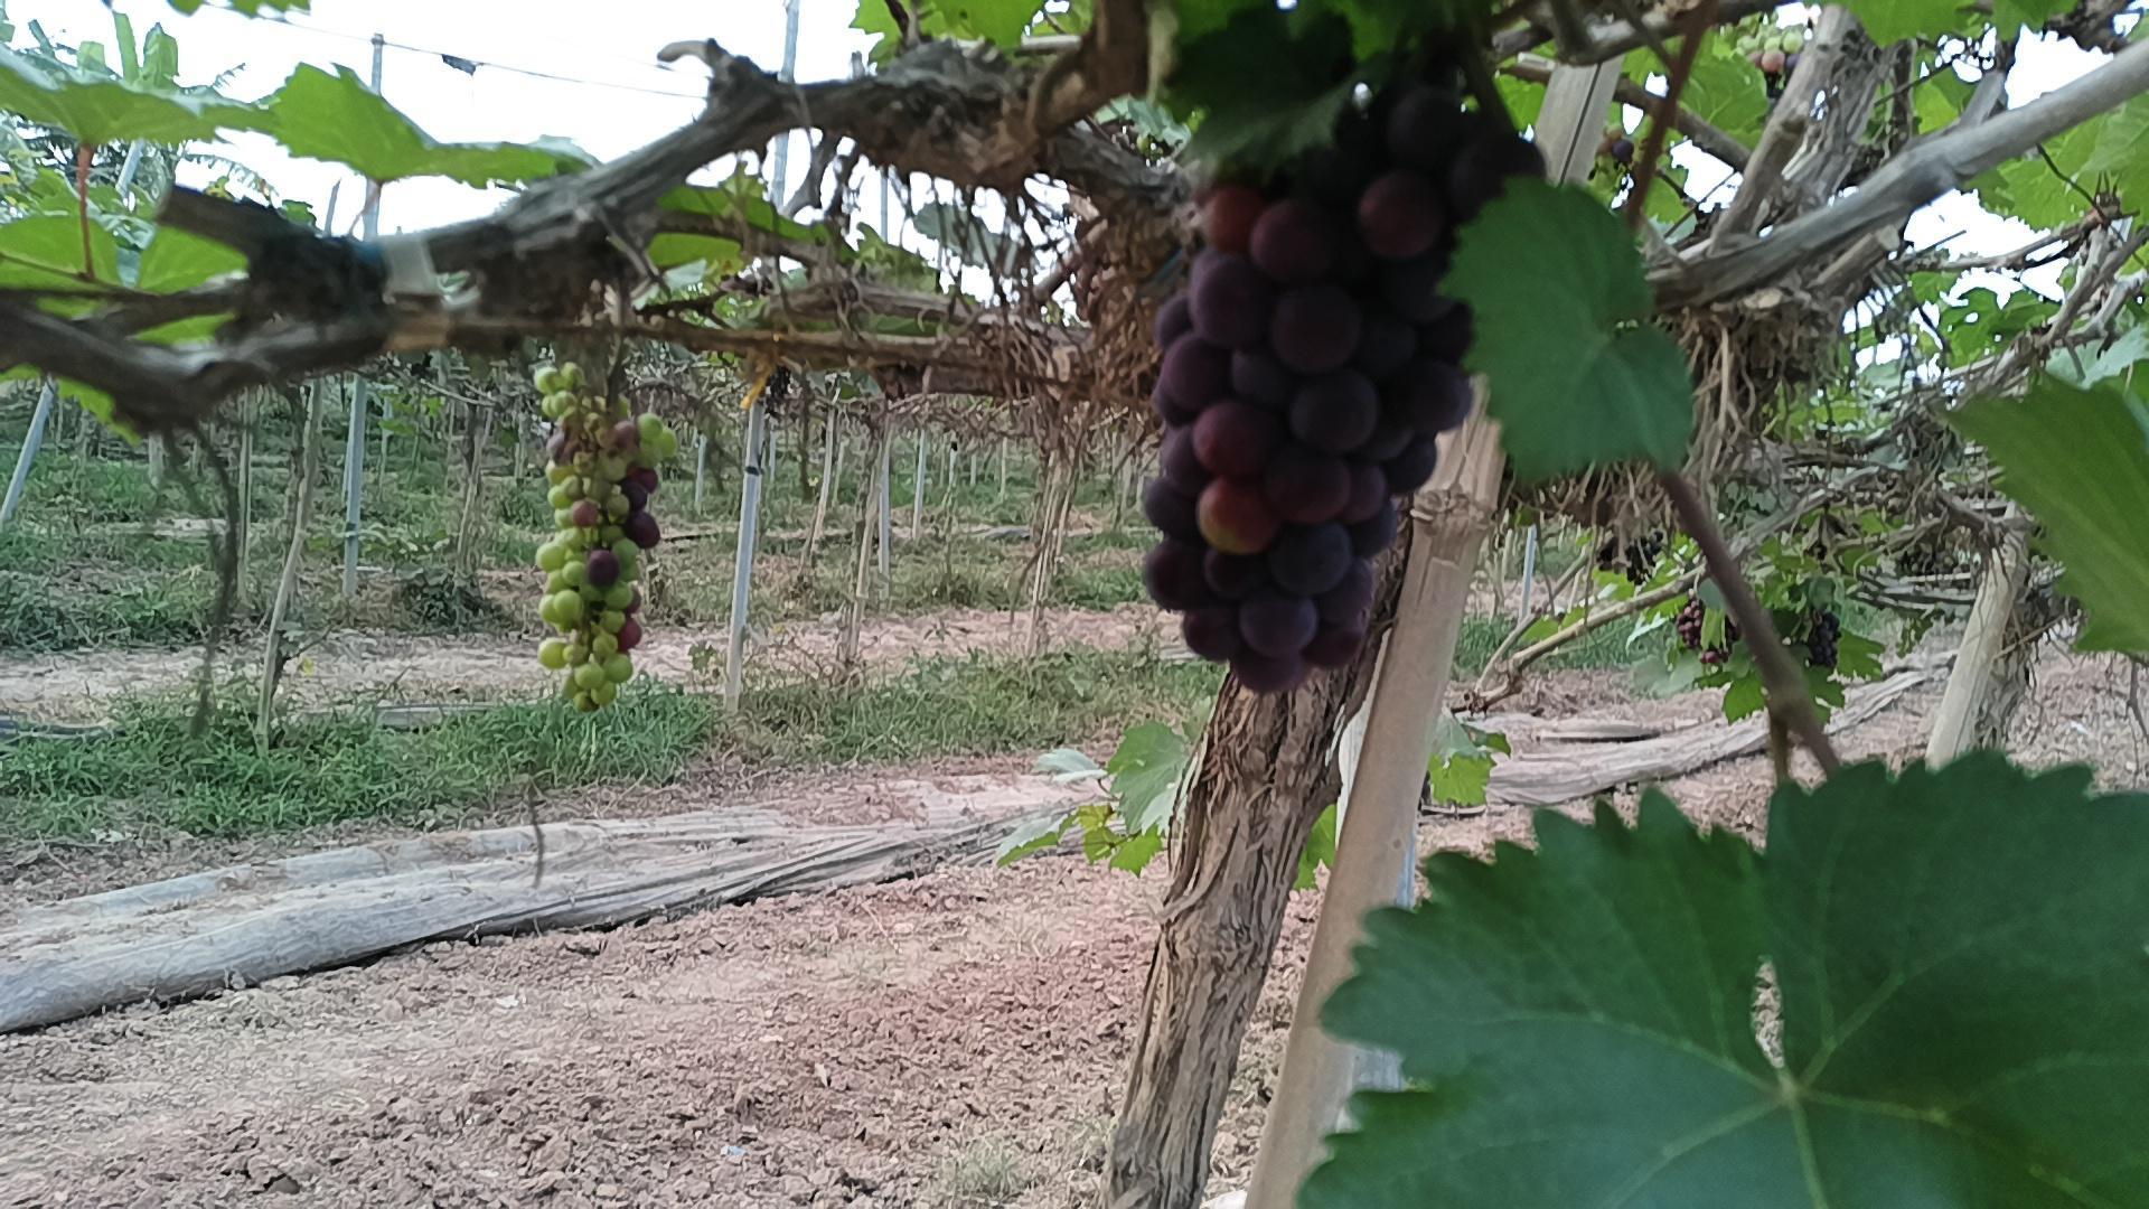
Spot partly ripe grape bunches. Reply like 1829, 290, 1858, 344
533, 362, 678, 712
1674, 594, 1740, 667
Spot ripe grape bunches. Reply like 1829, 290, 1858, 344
1593, 529, 1664, 585
1805, 612, 1841, 671
1144, 45, 1542, 693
